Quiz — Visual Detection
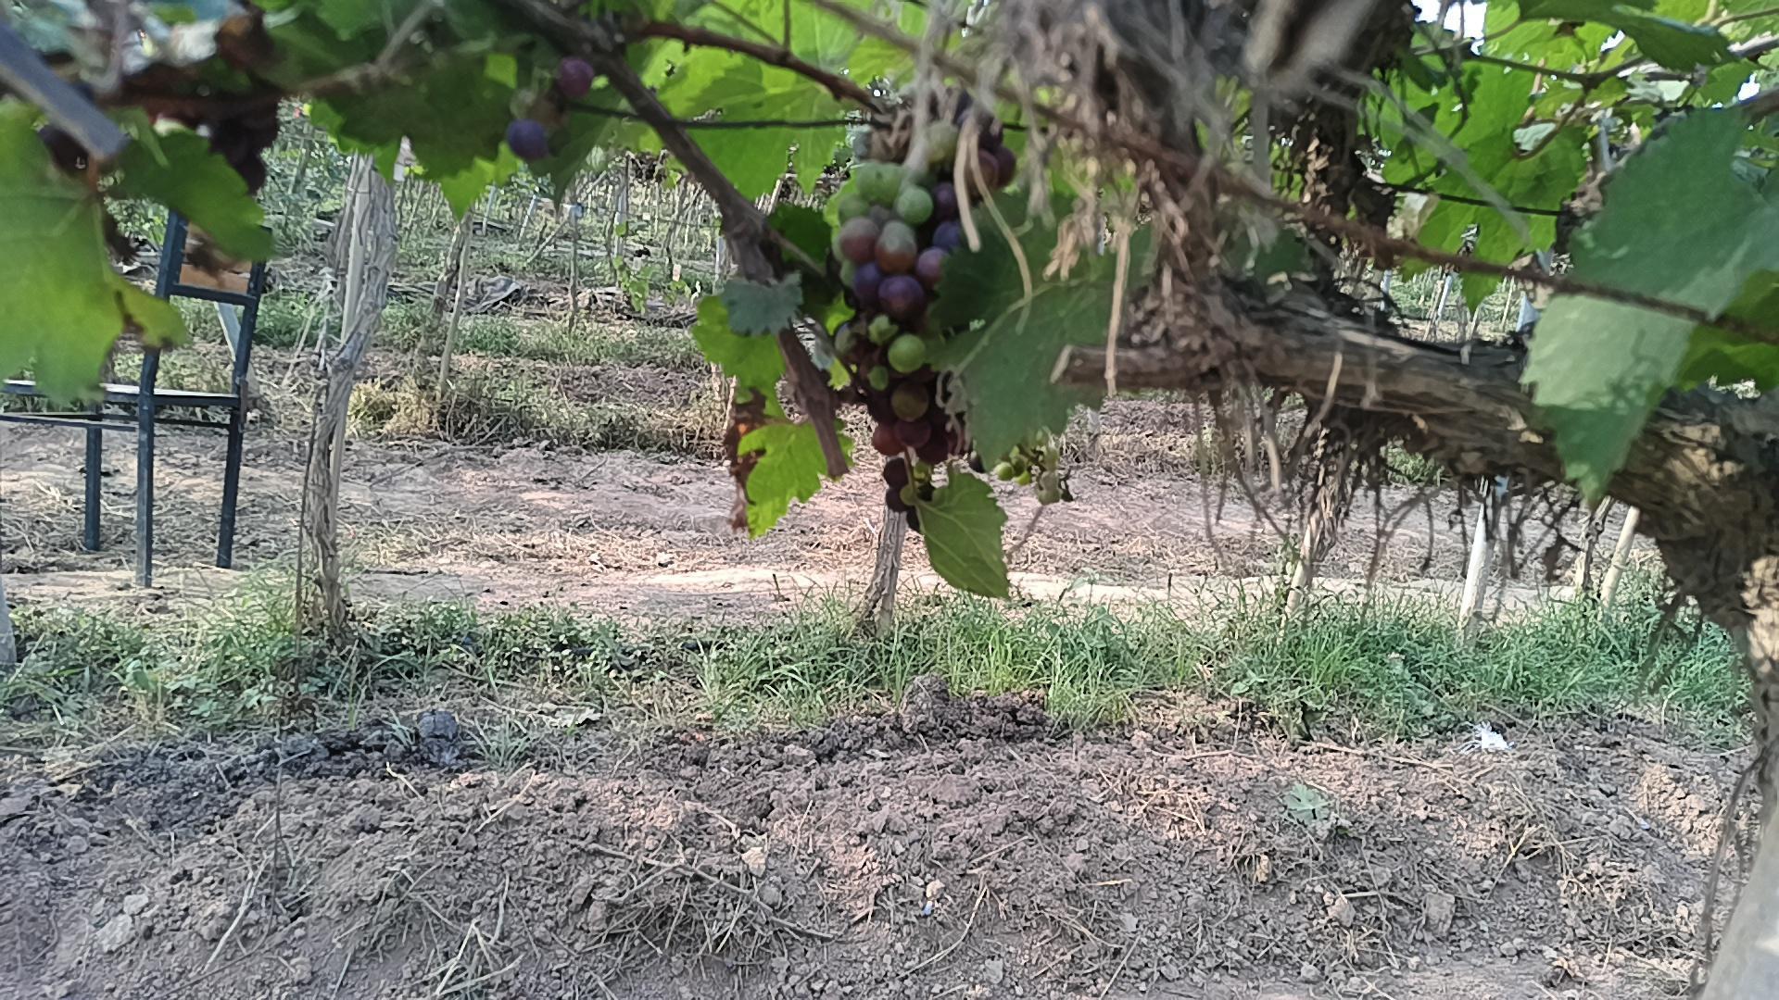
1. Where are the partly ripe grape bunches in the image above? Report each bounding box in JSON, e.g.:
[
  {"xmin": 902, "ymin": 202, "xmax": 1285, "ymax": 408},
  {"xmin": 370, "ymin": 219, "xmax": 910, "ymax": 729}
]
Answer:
[
  {"xmin": 833, "ymin": 85, "xmax": 1014, "ymax": 539},
  {"xmin": 505, "ymin": 2, "xmax": 644, "ymax": 160}
]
